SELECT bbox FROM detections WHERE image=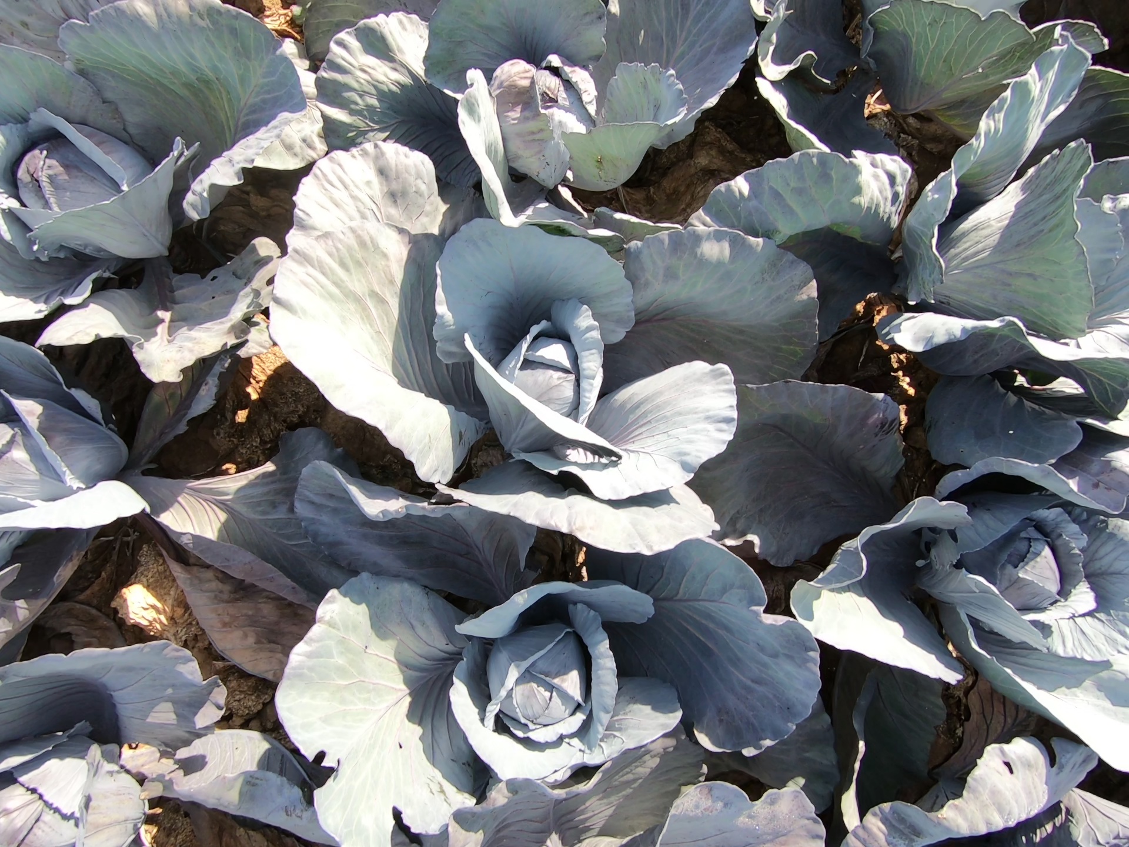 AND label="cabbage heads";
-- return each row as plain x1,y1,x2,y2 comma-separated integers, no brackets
18,138,137,231
1,420,85,505
961,521,1060,609
489,623,586,732
511,70,595,165
0,741,114,845
505,338,588,429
